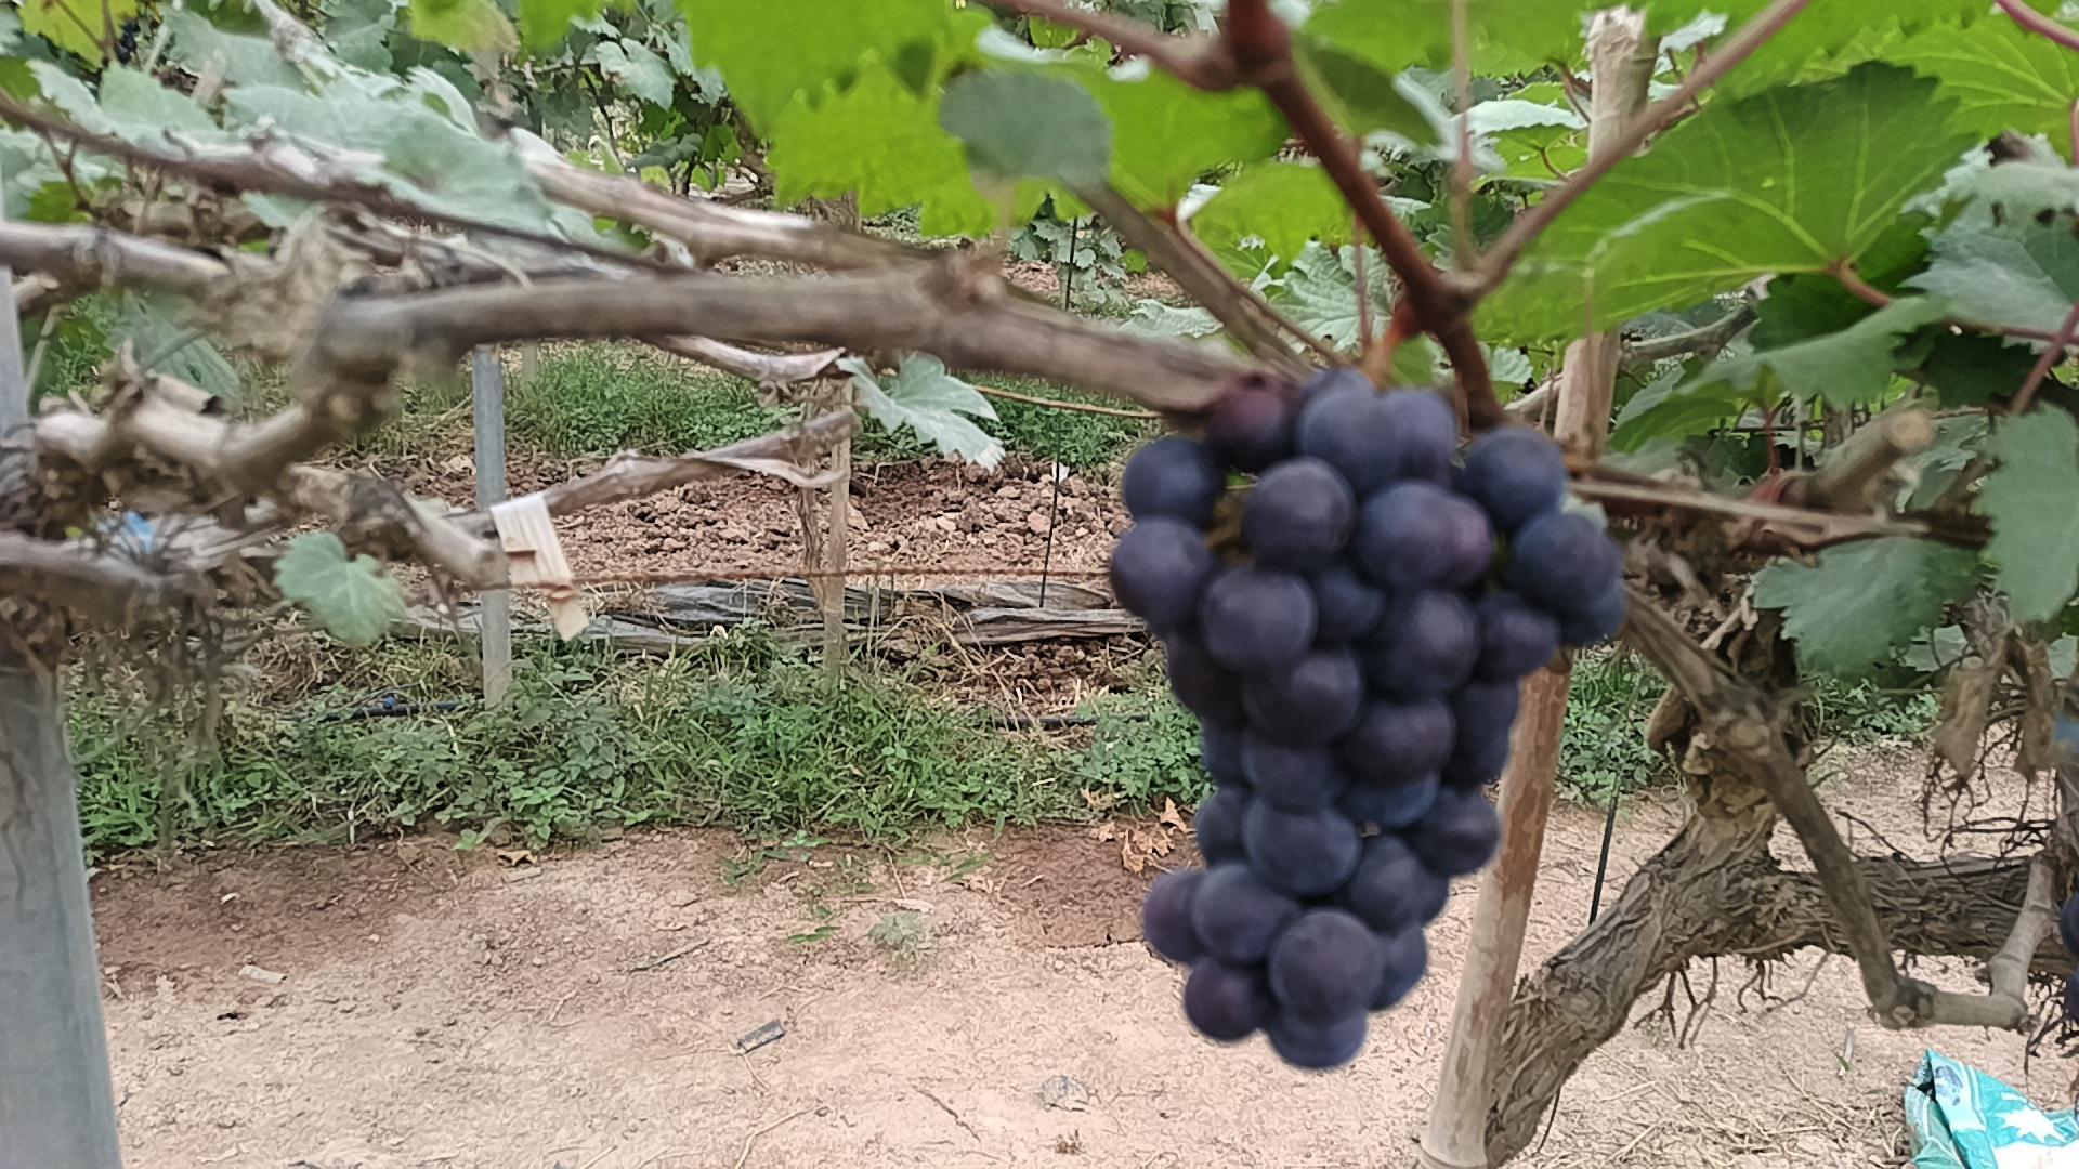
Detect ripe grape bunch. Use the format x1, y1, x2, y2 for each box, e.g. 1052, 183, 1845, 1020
1111, 369, 1624, 1067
